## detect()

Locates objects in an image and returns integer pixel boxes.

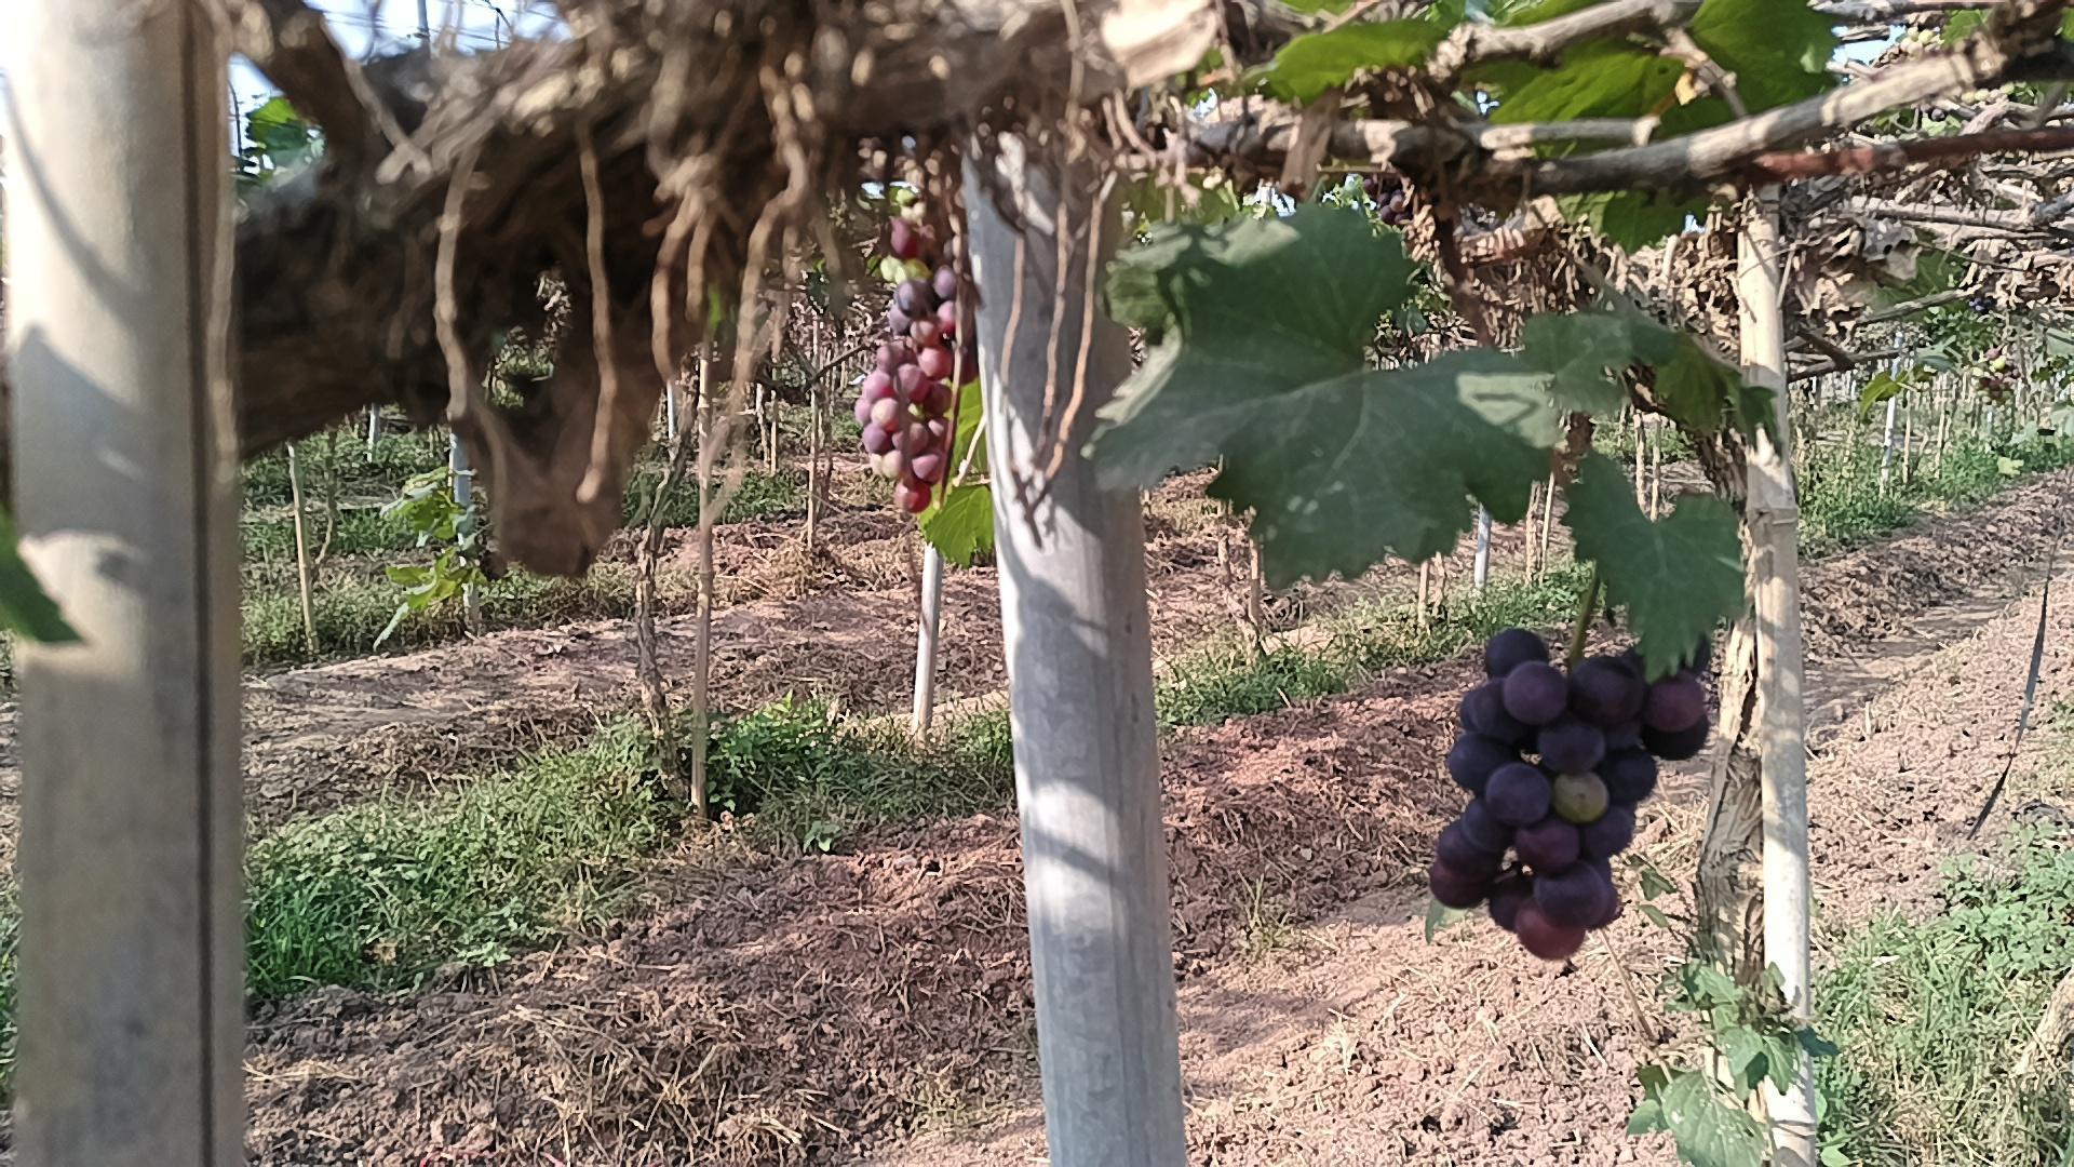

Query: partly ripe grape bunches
[854,187,978,514]
[1429,629,1710,960]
